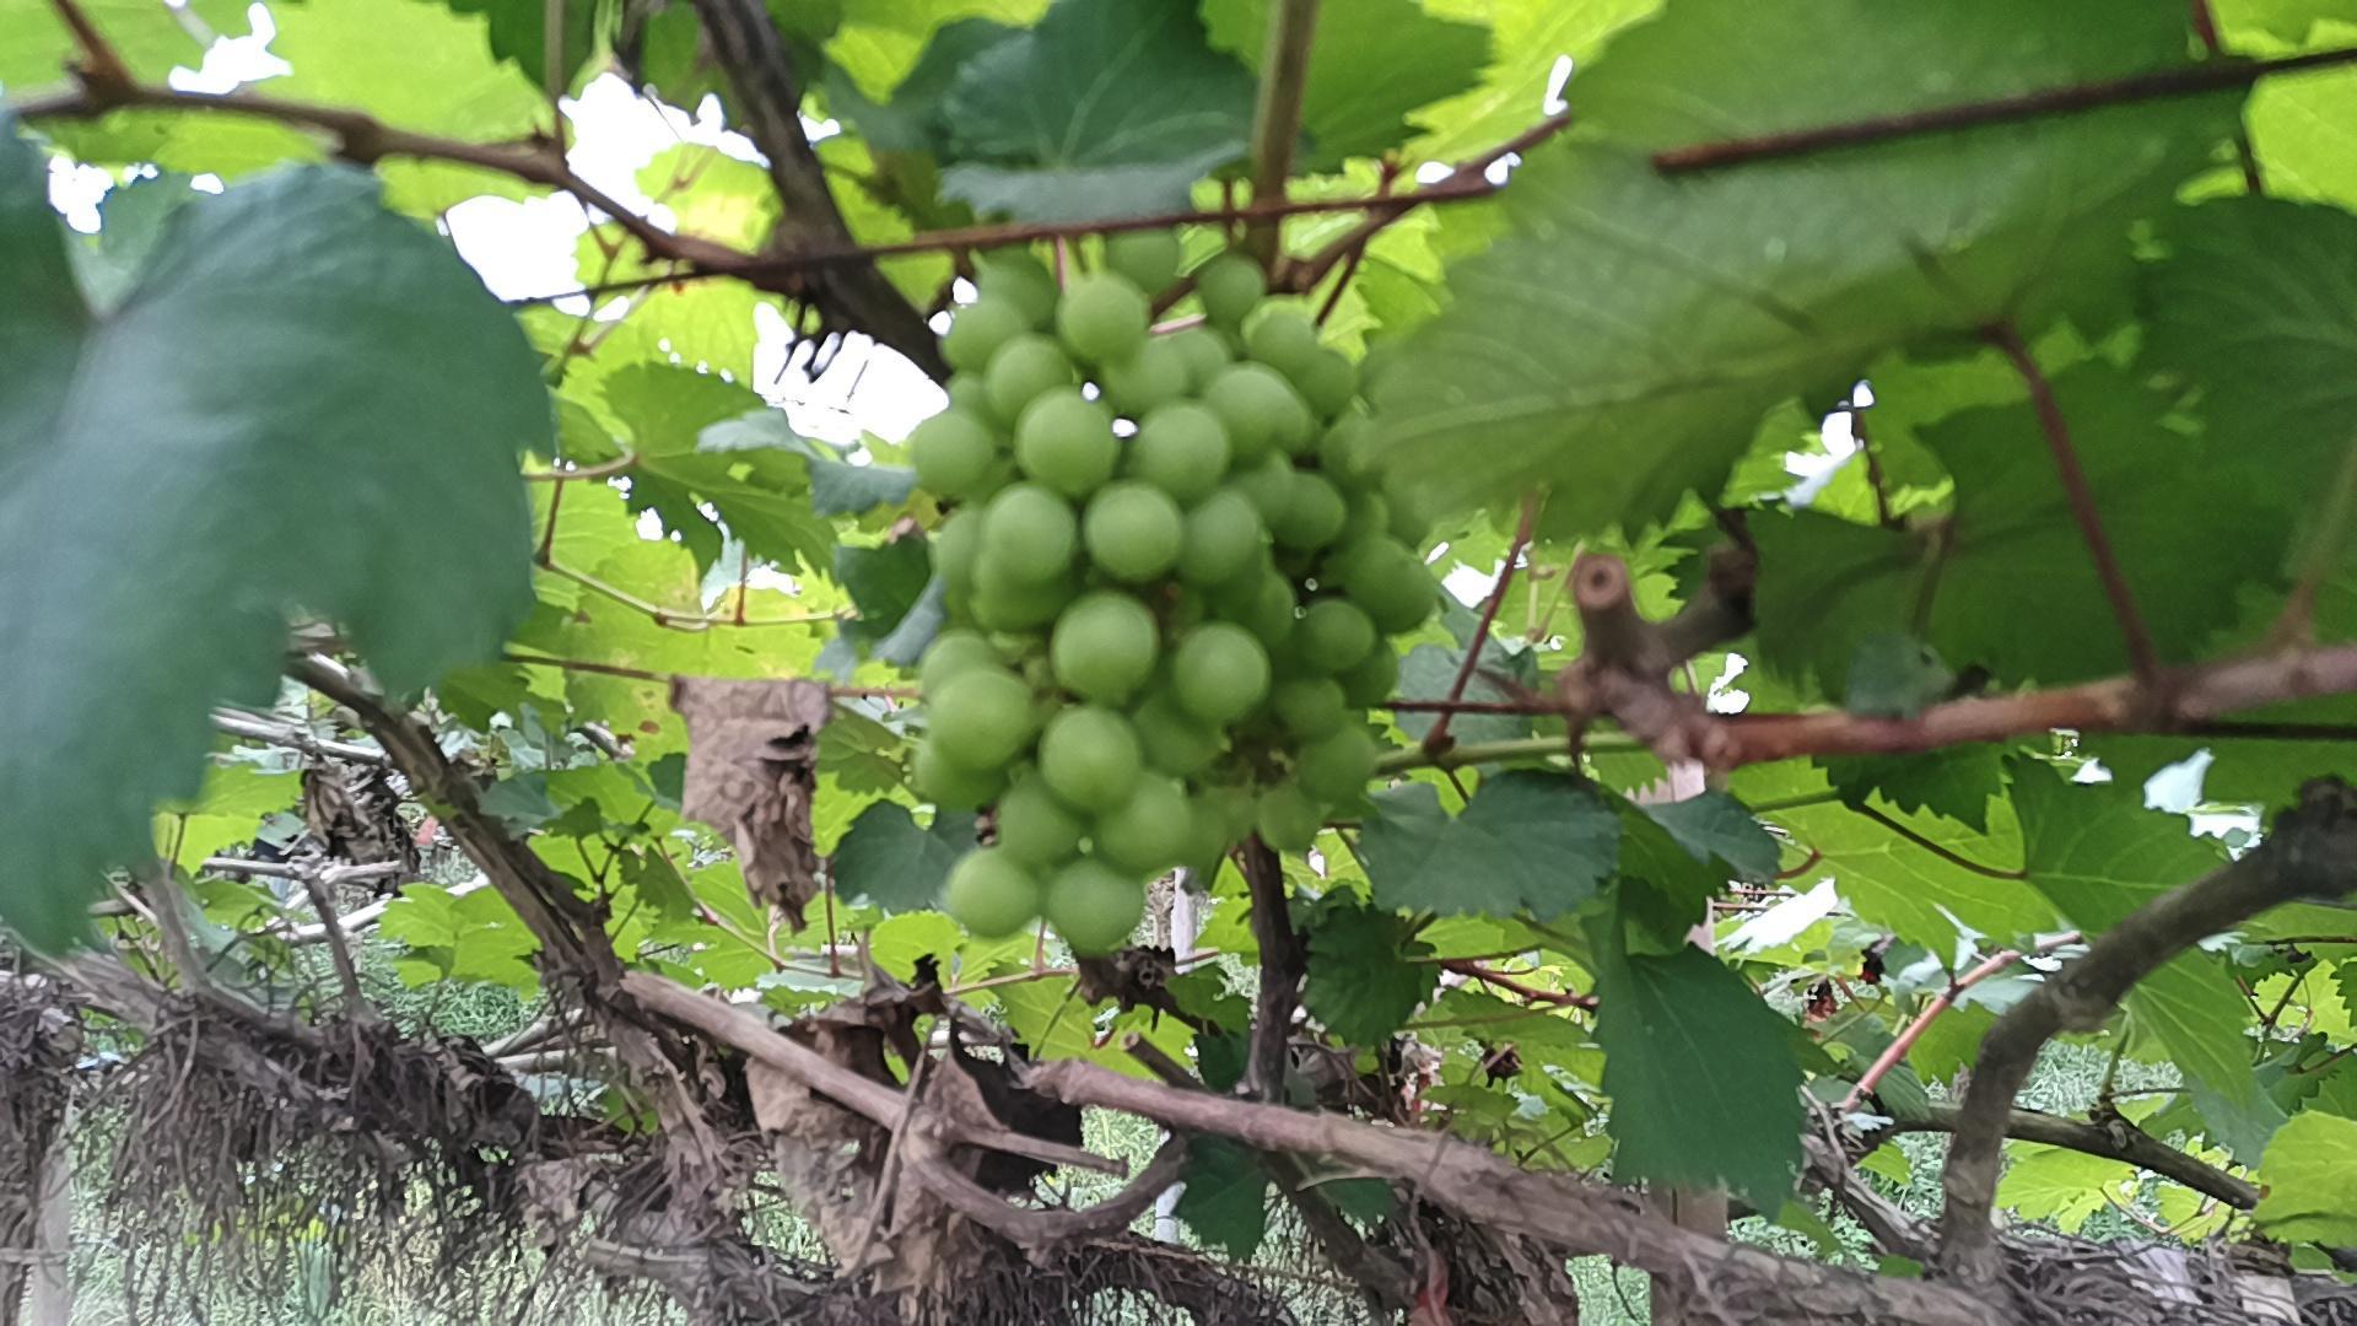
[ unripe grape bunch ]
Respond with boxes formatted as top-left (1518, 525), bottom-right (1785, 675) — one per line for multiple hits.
top-left (910, 236), bottom-right (1435, 952)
